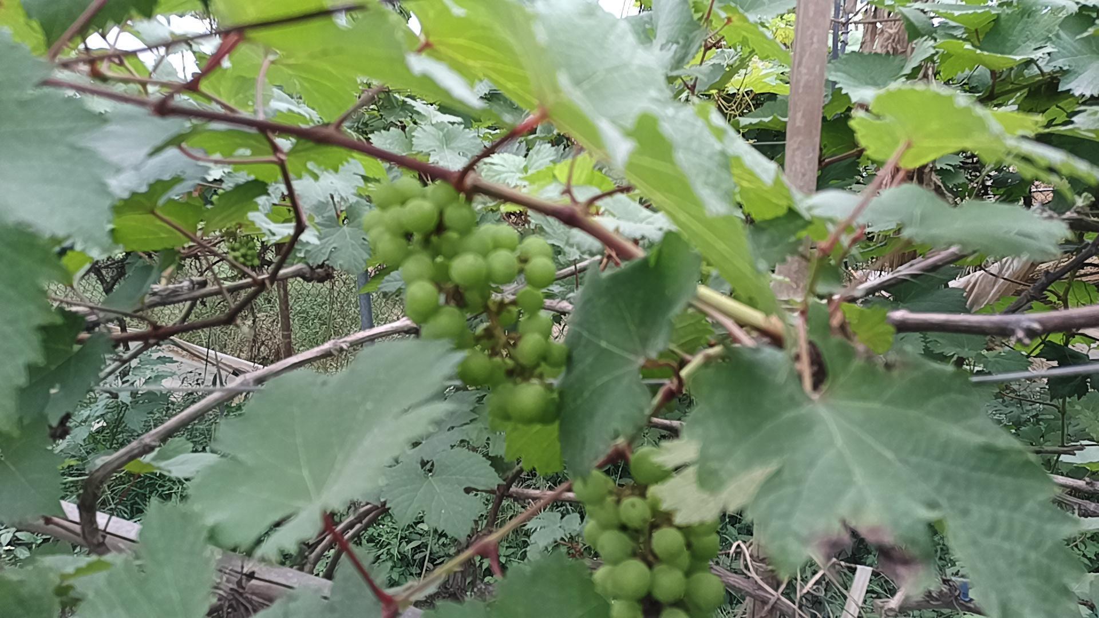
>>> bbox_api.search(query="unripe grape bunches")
[575,447,724,617]
[363,177,567,443]
[212,223,279,275]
